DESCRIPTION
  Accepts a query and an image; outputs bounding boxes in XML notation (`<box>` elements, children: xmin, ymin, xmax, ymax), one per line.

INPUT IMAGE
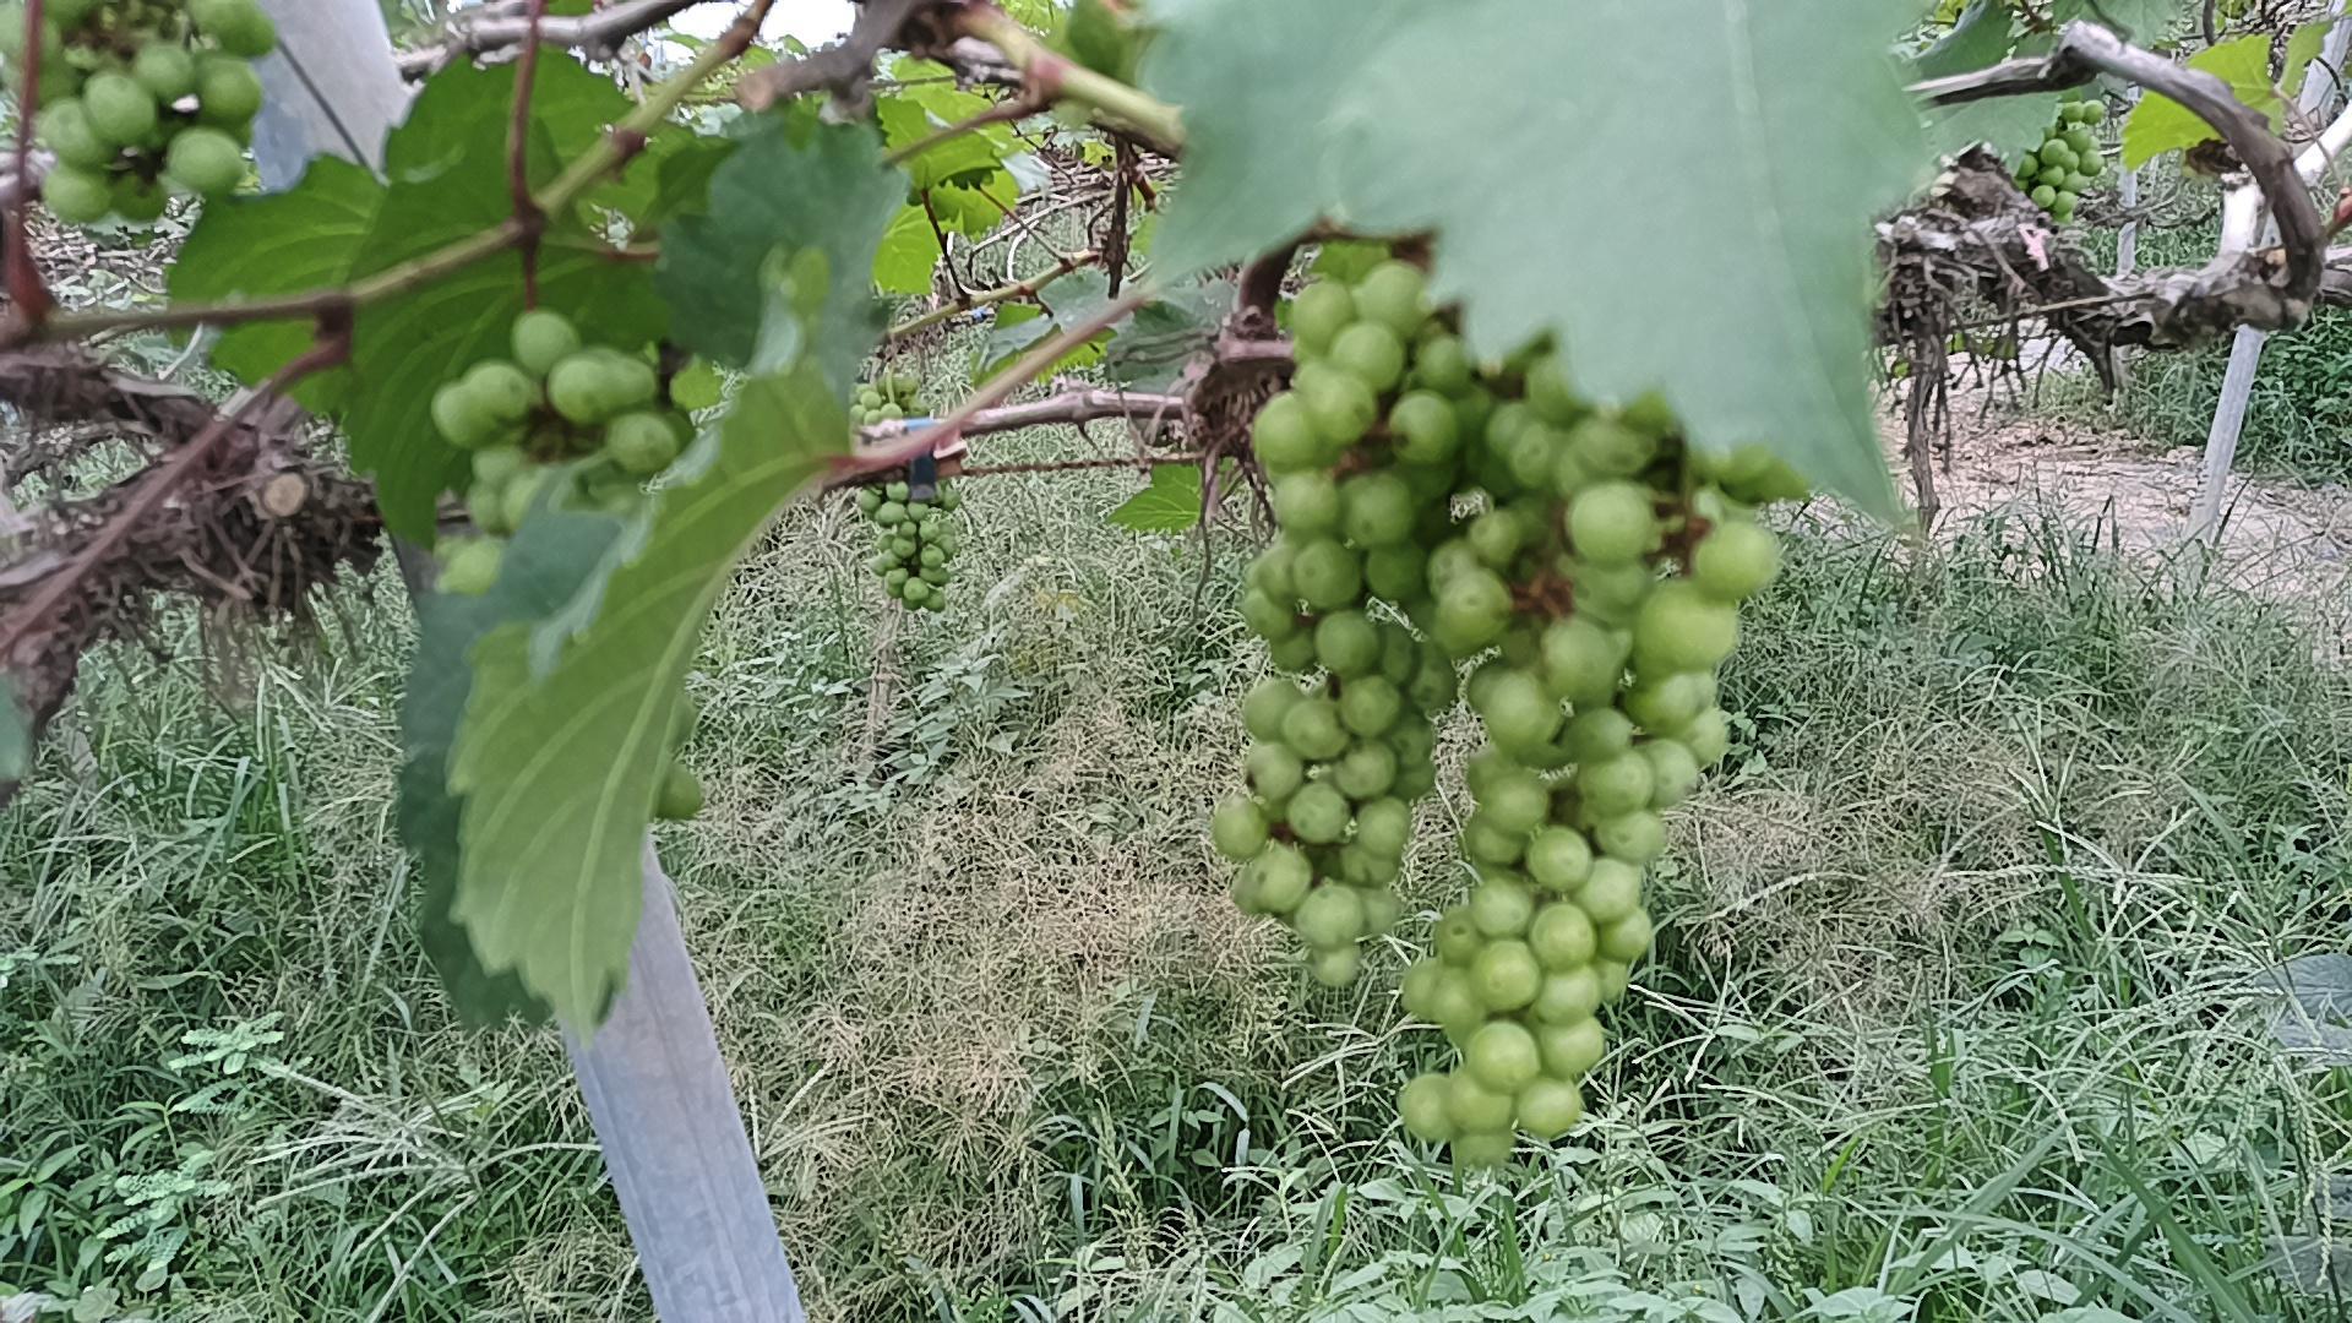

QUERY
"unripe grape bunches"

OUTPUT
<box><xmin>2014</xmin><ymin>100</ymin><xmax>2106</xmax><ymax>222</ymax></box>
<box><xmin>851</xmin><ymin>377</ymin><xmax>960</xmax><ymax>614</ymax></box>
<box><xmin>431</xmin><ymin>310</ymin><xmax>693</xmax><ymax>595</ymax></box>
<box><xmin>1399</xmin><ymin>358</ymin><xmax>1807</xmax><ymax>1163</ymax></box>
<box><xmin>0</xmin><ymin>0</ymin><xmax>276</xmax><ymax>222</ymax></box>
<box><xmin>1213</xmin><ymin>239</ymin><xmax>1487</xmax><ymax>986</ymax></box>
